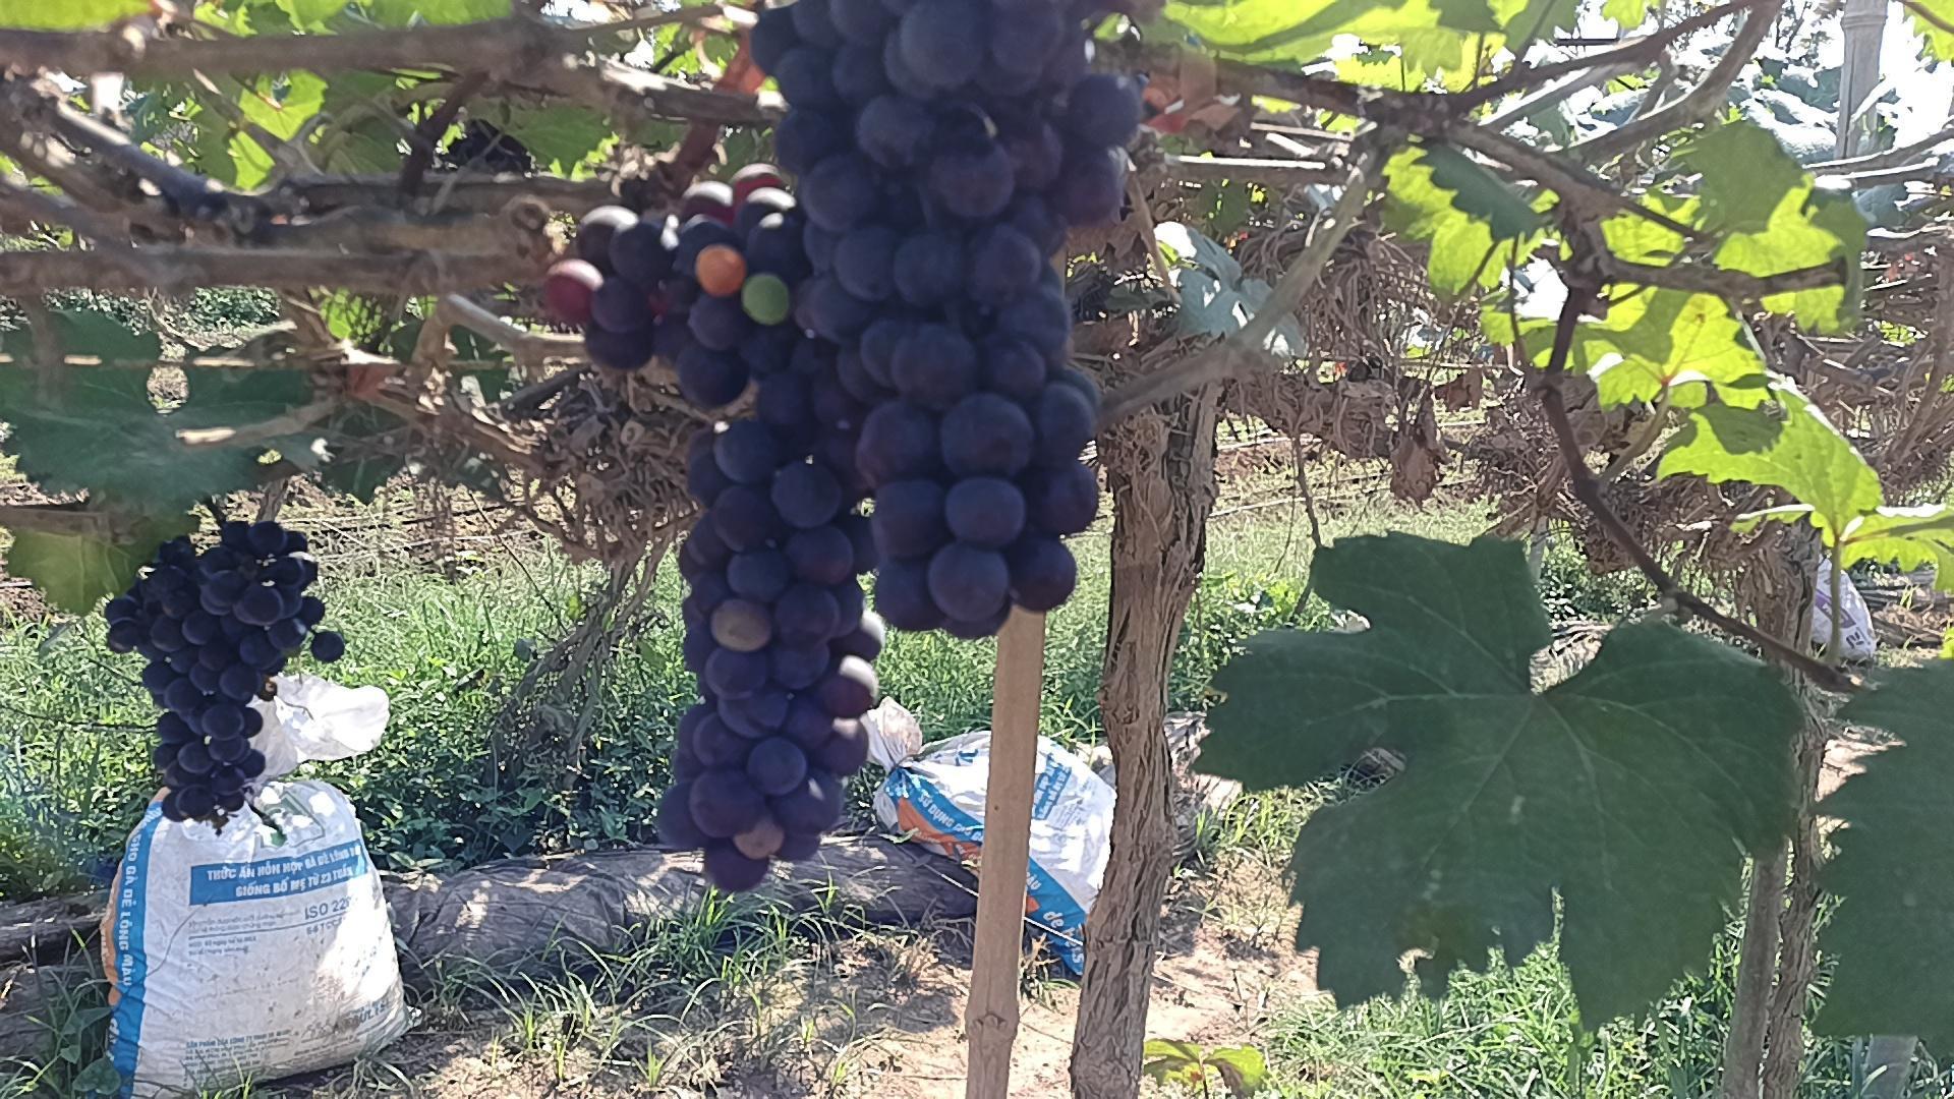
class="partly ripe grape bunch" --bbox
[545,164,882,890]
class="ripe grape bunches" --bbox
[751,0,1142,637]
[441,120,532,173]
[107,521,343,825]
